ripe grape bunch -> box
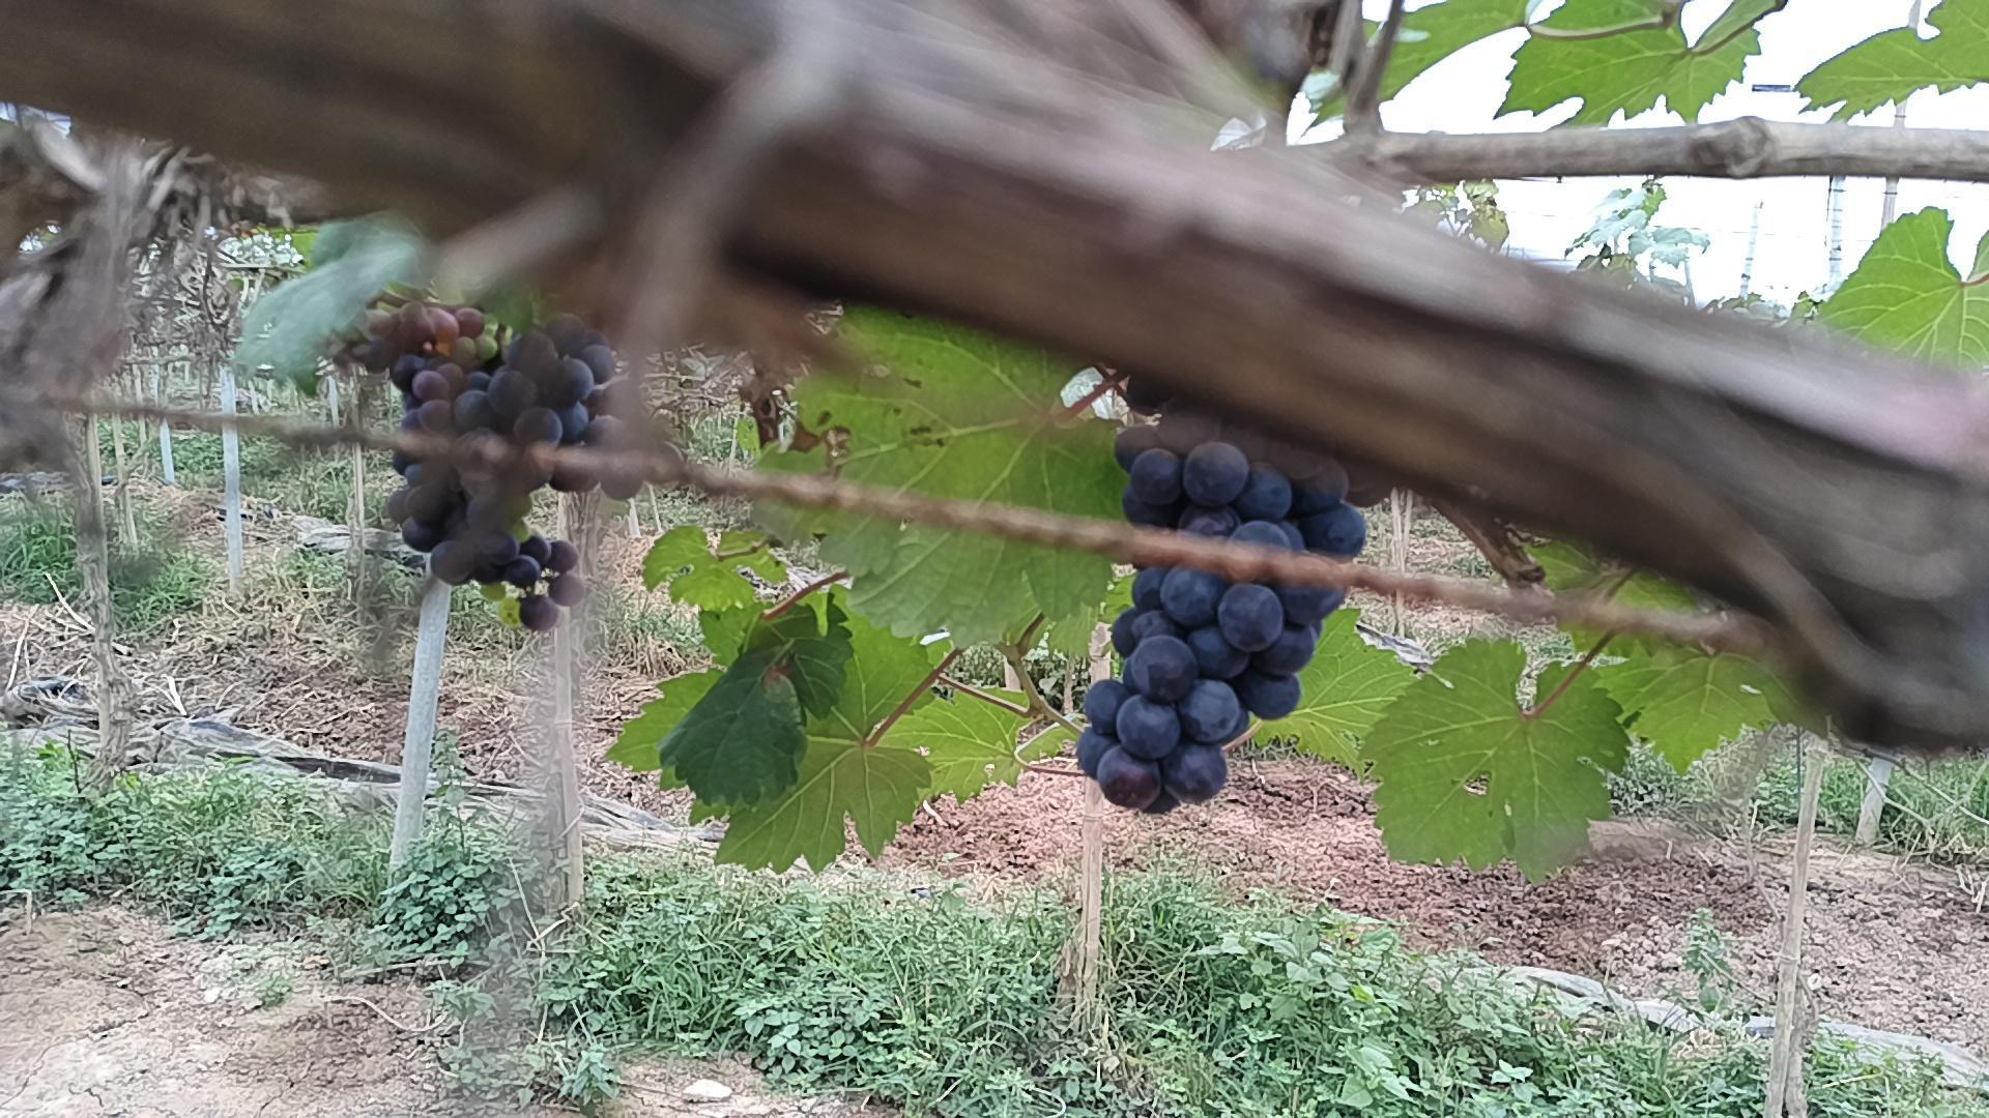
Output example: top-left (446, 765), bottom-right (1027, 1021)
top-left (1076, 367), bottom-right (1404, 821)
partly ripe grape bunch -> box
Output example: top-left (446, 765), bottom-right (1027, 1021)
top-left (326, 299), bottom-right (693, 635)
